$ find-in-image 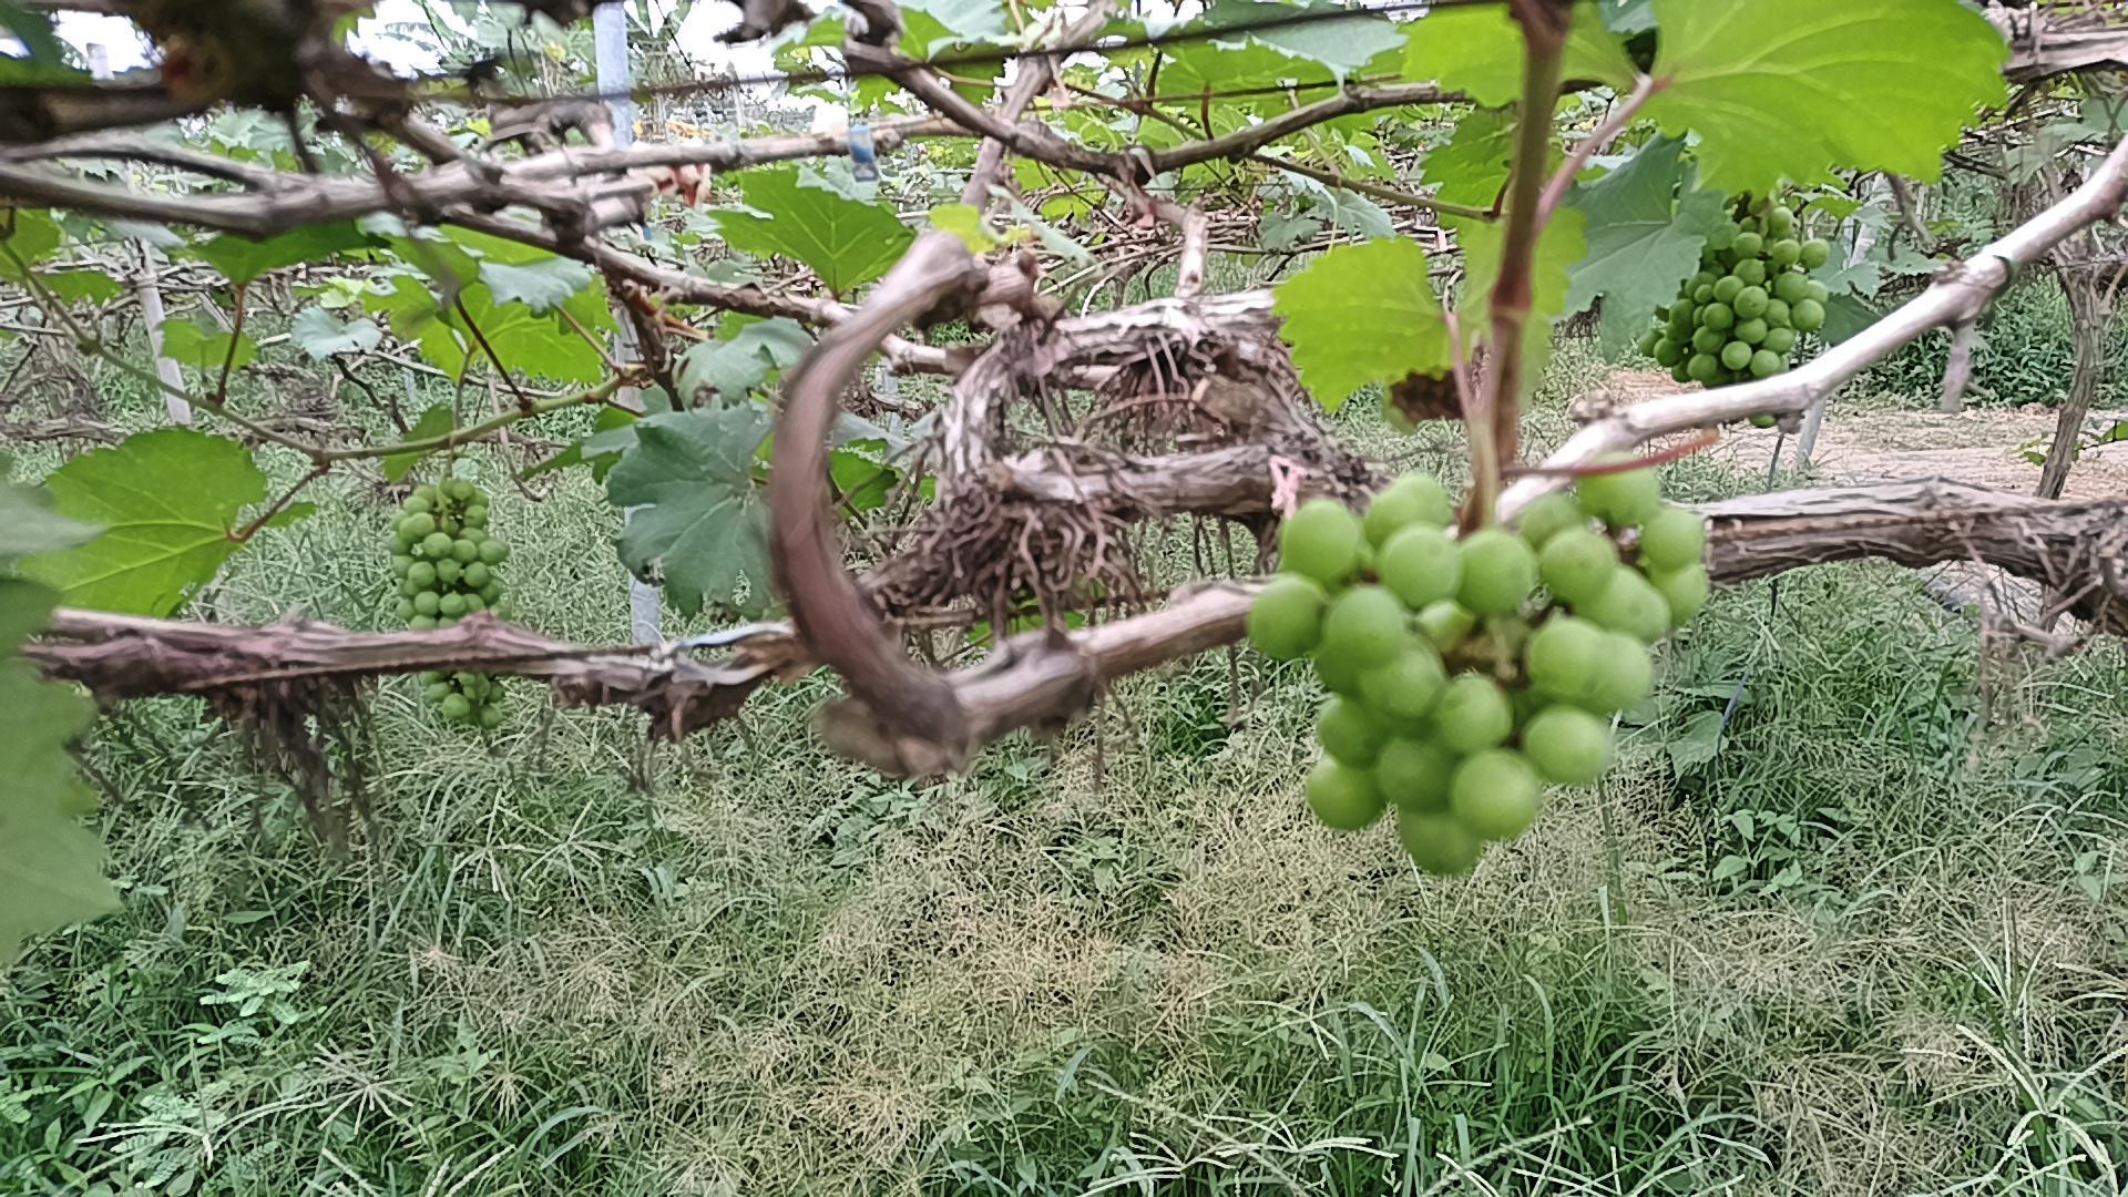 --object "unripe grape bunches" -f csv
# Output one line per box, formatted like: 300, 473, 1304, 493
1633, 198, 1832, 386
1250, 449, 1711, 874
387, 477, 510, 729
